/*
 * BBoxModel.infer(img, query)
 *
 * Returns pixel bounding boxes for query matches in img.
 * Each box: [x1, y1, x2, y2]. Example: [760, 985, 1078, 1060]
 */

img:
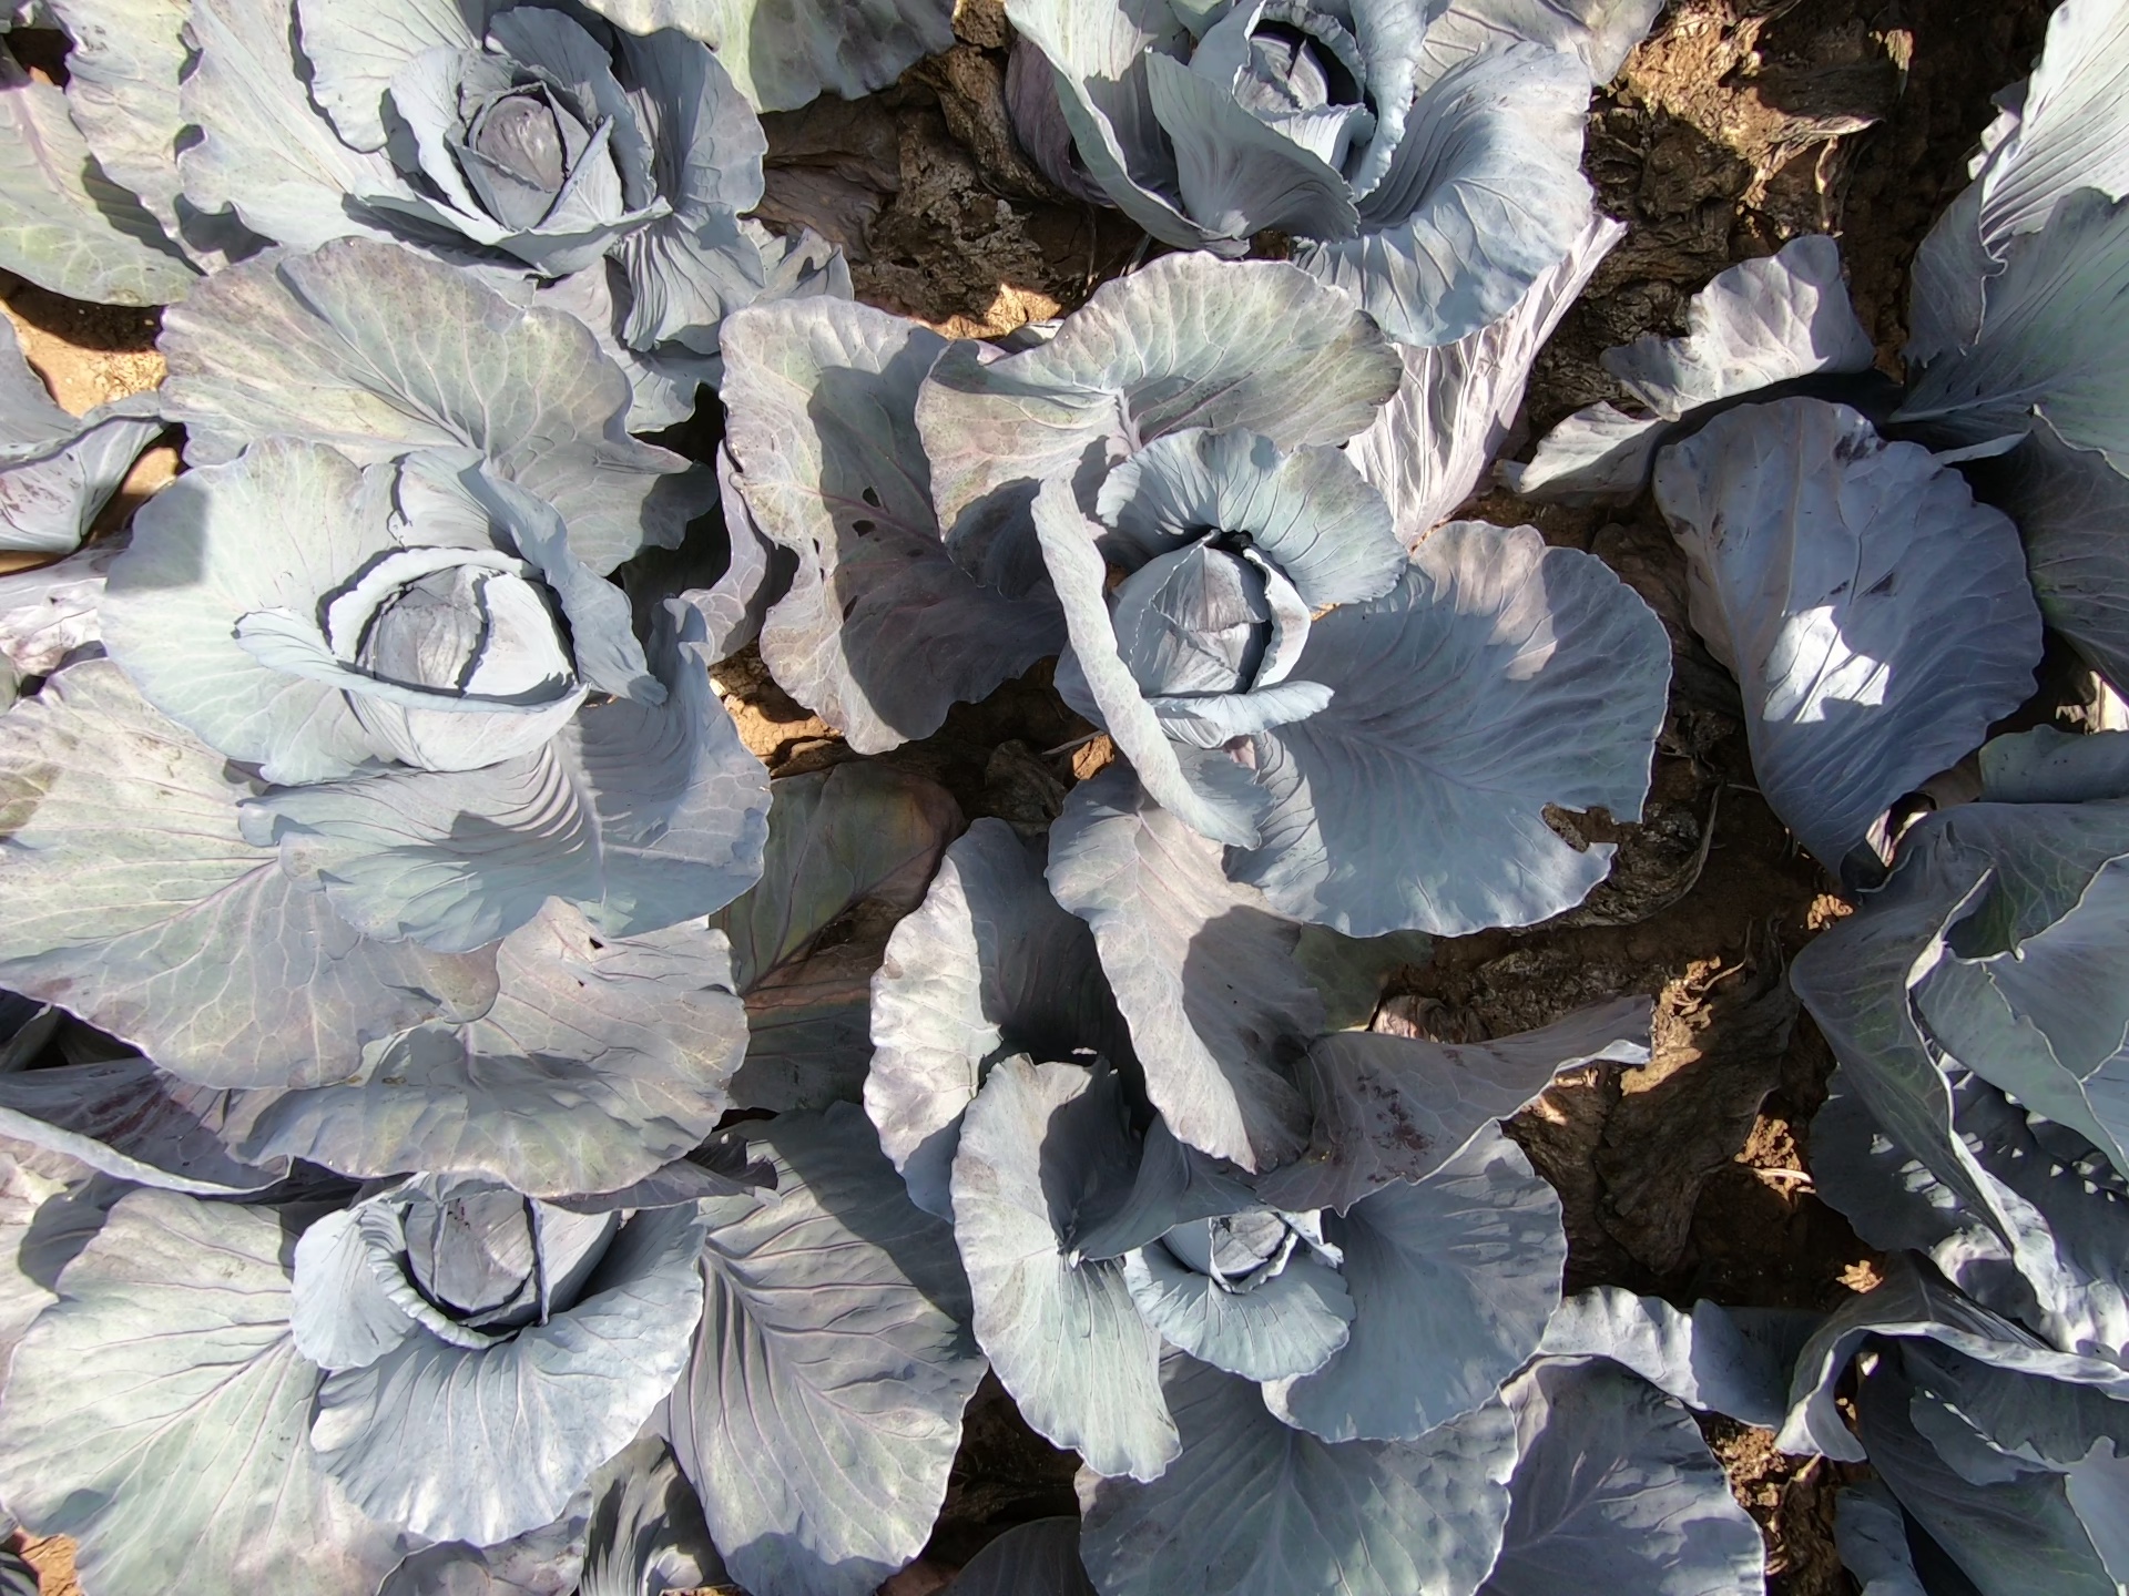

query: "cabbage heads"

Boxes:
[1192, 32, 1331, 202]
[360, 574, 570, 764]
[475, 95, 603, 233]
[1159, 1142, 1292, 1275]
[400, 1139, 615, 1320]
[1123, 543, 1288, 713]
